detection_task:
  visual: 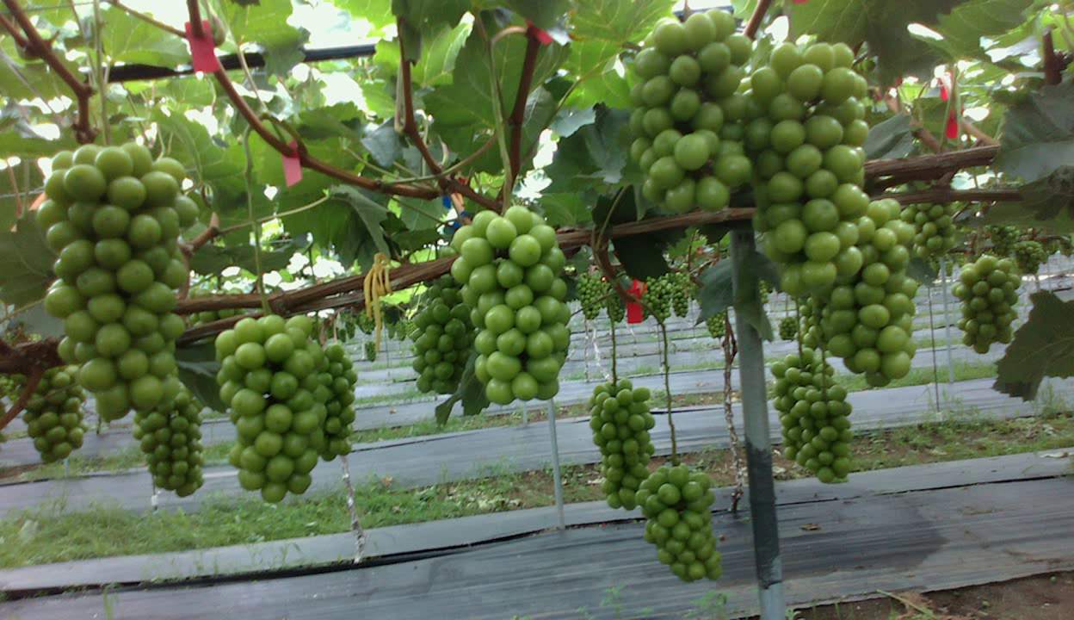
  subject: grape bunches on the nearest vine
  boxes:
[38,143,197,421]
[827,197,917,387]
[628,9,753,213]
[216,314,327,502]
[740,41,871,295]
[450,205,571,403]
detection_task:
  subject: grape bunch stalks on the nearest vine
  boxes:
[242,124,273,316]
[489,26,527,214]
[93,2,110,146]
